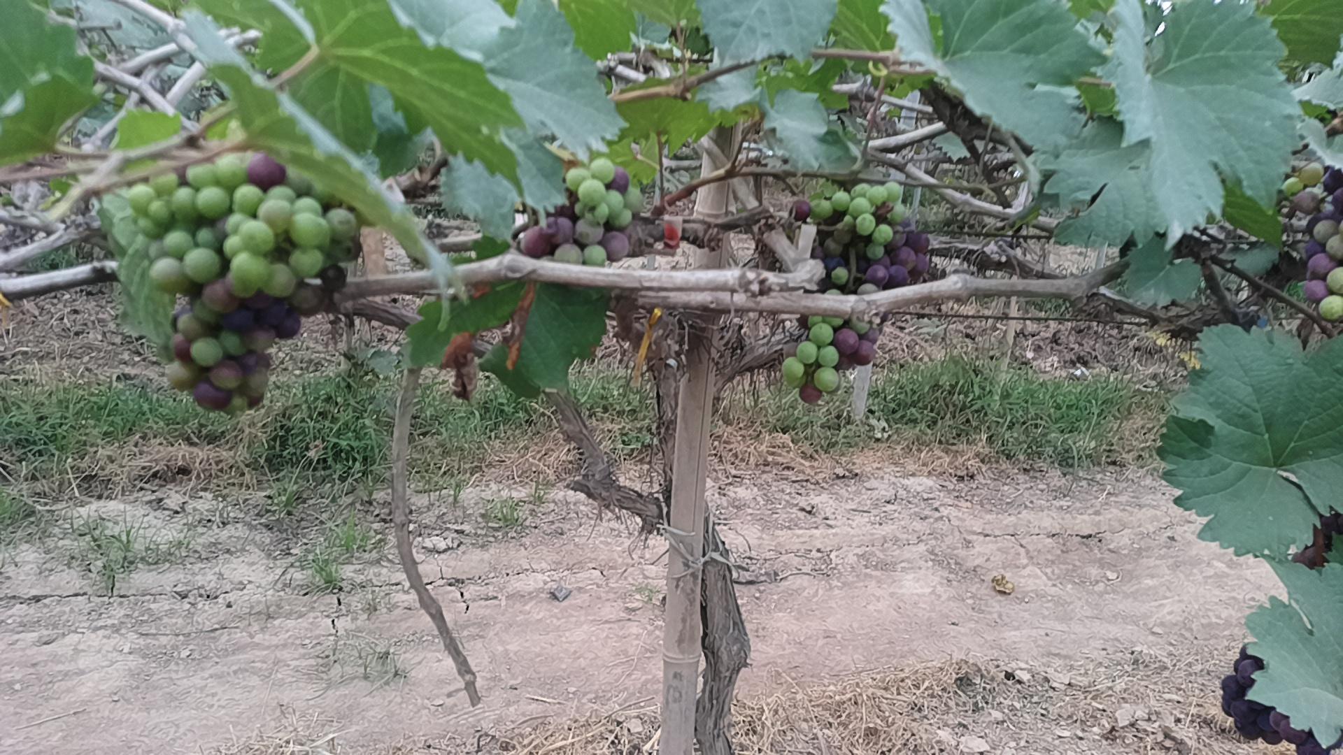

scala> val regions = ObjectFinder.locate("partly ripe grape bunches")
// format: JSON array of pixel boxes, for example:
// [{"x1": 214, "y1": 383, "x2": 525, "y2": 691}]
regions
[
  {"x1": 516, "y1": 158, "x2": 641, "y2": 265},
  {"x1": 1286, "y1": 166, "x2": 1342, "y2": 322},
  {"x1": 781, "y1": 182, "x2": 928, "y2": 404},
  {"x1": 99, "y1": 152, "x2": 362, "y2": 412}
]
